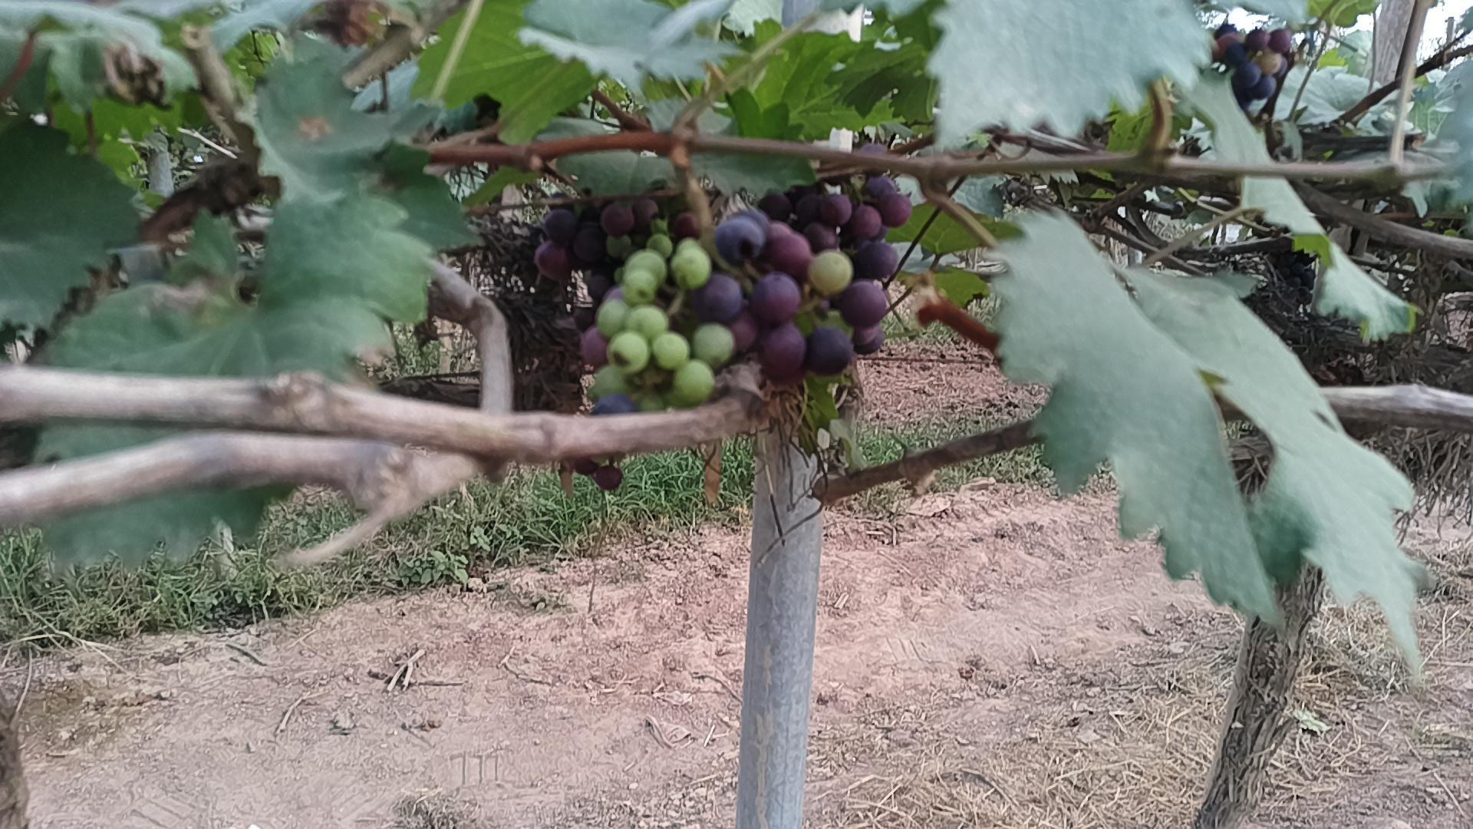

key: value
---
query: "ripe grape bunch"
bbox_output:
[1265,248,1317,305]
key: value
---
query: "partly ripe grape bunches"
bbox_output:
[535,144,912,413]
[1213,23,1293,110]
